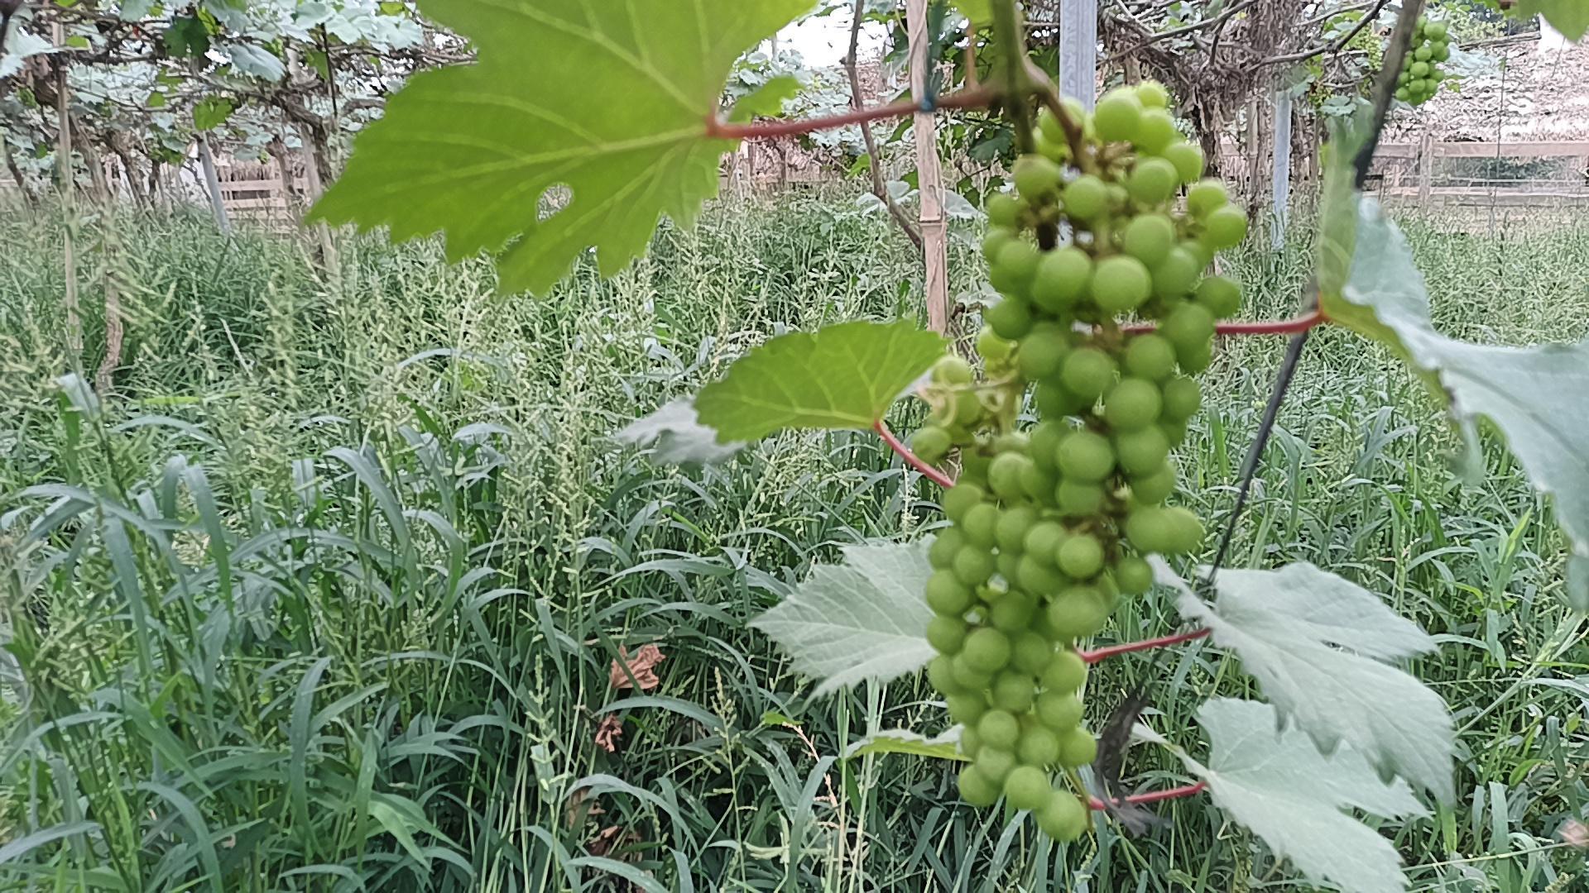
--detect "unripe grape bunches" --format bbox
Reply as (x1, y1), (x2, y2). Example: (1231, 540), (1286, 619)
(1394, 16), (1450, 107)
(913, 84), (1246, 839)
